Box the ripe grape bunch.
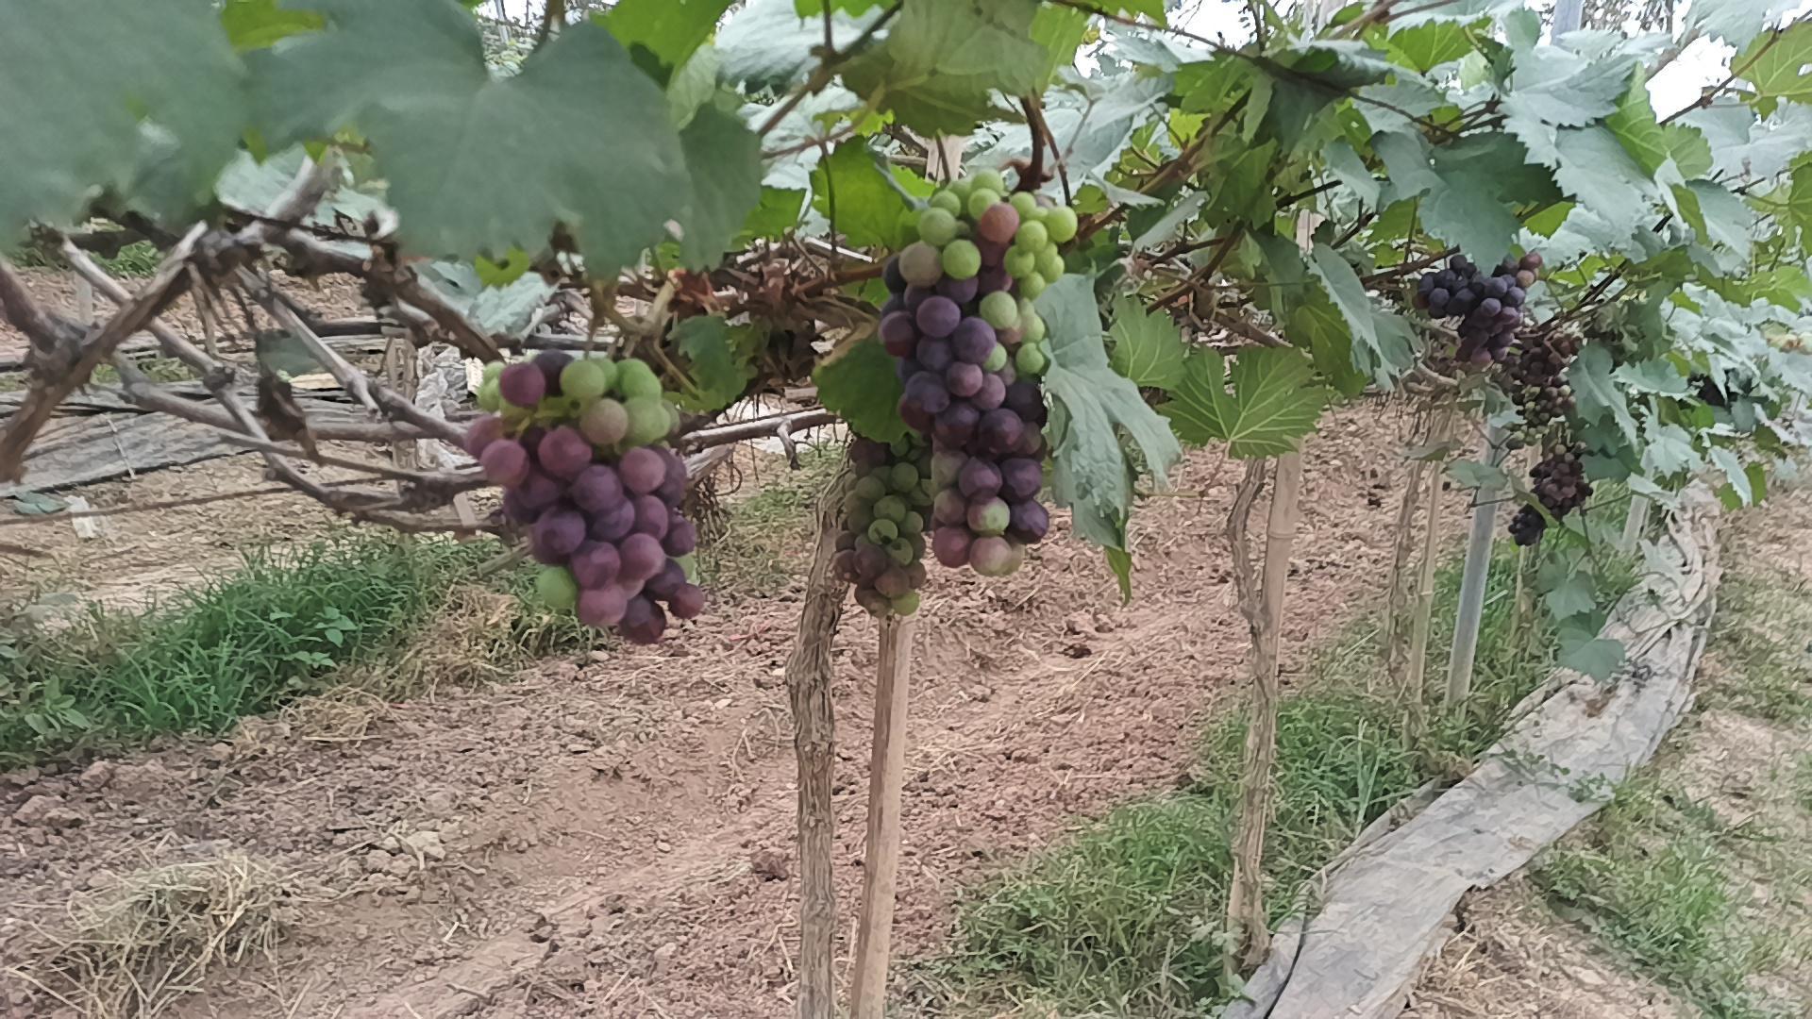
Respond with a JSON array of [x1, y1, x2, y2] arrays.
[[1417, 254, 1541, 366]]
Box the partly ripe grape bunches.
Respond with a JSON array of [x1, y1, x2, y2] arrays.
[[1508, 444, 1592, 545], [880, 171, 1075, 575], [462, 351, 704, 643], [1497, 329, 1585, 449], [836, 433, 931, 616]]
